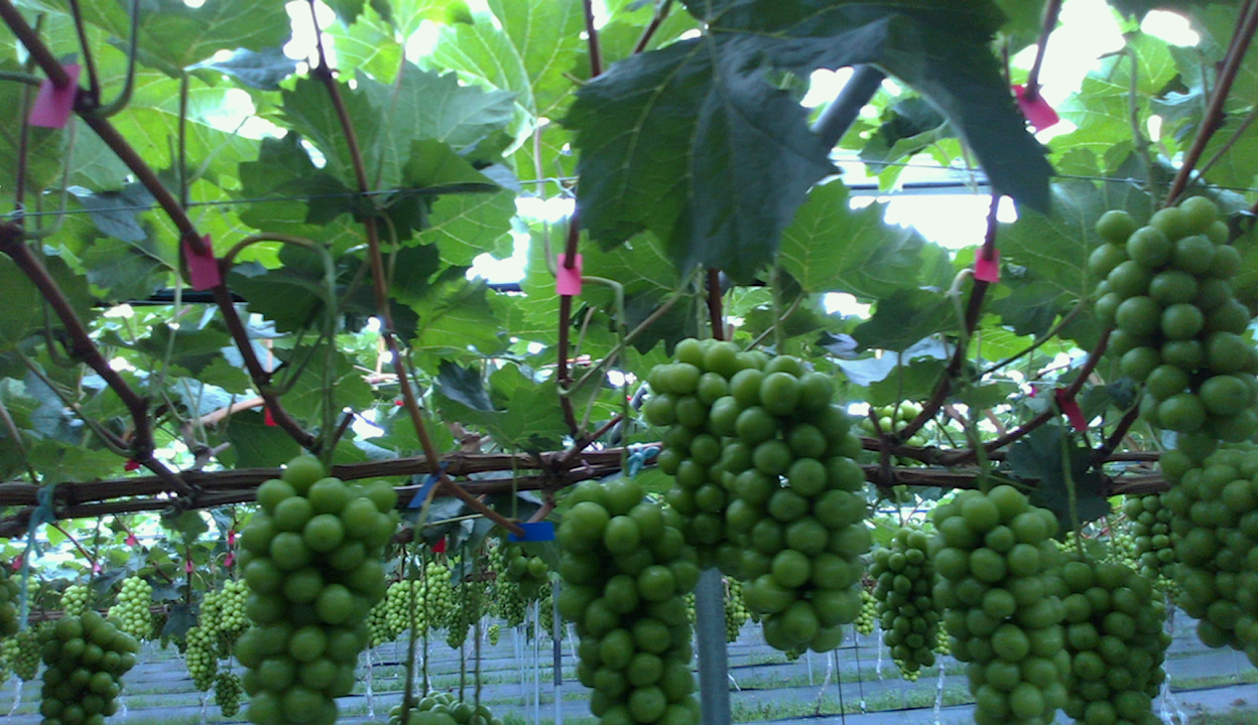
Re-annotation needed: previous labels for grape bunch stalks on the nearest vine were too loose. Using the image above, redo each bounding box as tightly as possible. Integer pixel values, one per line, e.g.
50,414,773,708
223,231,339,476
583,275,632,475
697,264,706,338
1048,391,1085,560
966,428,989,493
770,267,785,353
1099,45,1159,211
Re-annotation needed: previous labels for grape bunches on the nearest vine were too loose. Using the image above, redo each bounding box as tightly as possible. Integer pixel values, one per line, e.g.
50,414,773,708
1053,553,1170,724
1090,195,1257,464
711,353,873,655
646,337,767,575
236,455,399,723
555,478,699,724
929,485,1073,724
